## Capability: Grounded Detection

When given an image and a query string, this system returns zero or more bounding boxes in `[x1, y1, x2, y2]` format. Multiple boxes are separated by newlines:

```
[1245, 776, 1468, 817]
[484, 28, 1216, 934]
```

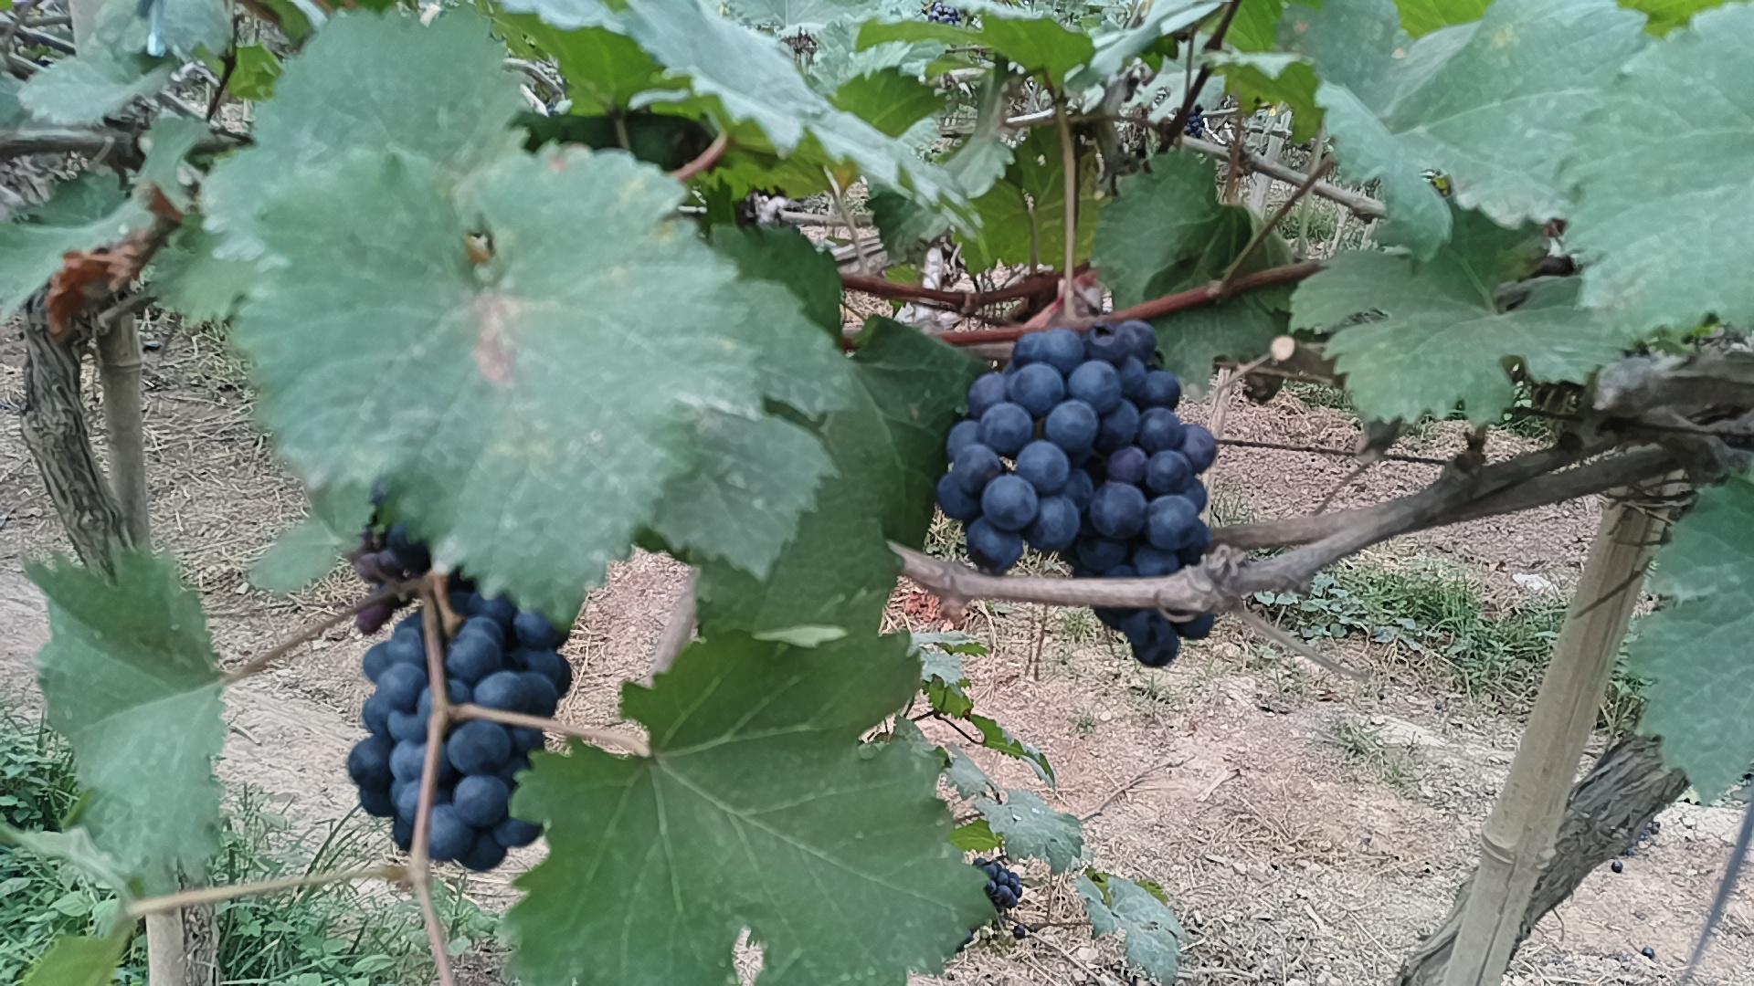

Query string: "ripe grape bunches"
[347, 591, 572, 871]
[936, 321, 1216, 667]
